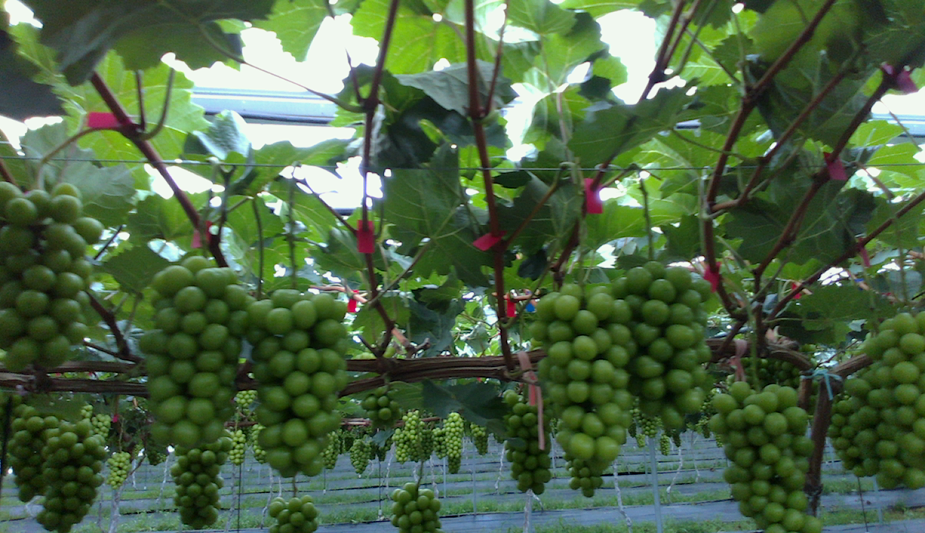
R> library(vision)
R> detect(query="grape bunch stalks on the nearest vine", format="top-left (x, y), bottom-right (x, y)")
top-left (505, 161), bottom-right (584, 290)
top-left (33, 127), bottom-right (119, 189)
top-left (887, 200), bottom-right (913, 315)
top-left (721, 276), bottom-right (761, 394)
top-left (632, 164), bottom-right (654, 261)
top-left (288, 178), bottom-right (297, 289)
top-left (199, 155), bottom-right (219, 258)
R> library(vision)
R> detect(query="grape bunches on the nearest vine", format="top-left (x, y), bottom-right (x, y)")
top-left (245, 288), bottom-right (348, 478)
top-left (843, 311), bottom-right (924, 491)
top-left (708, 381), bottom-right (823, 532)
top-left (138, 255), bottom-right (256, 450)
top-left (528, 284), bottom-right (637, 463)
top-left (0, 181), bottom-right (104, 374)
top-left (608, 261), bottom-right (714, 429)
